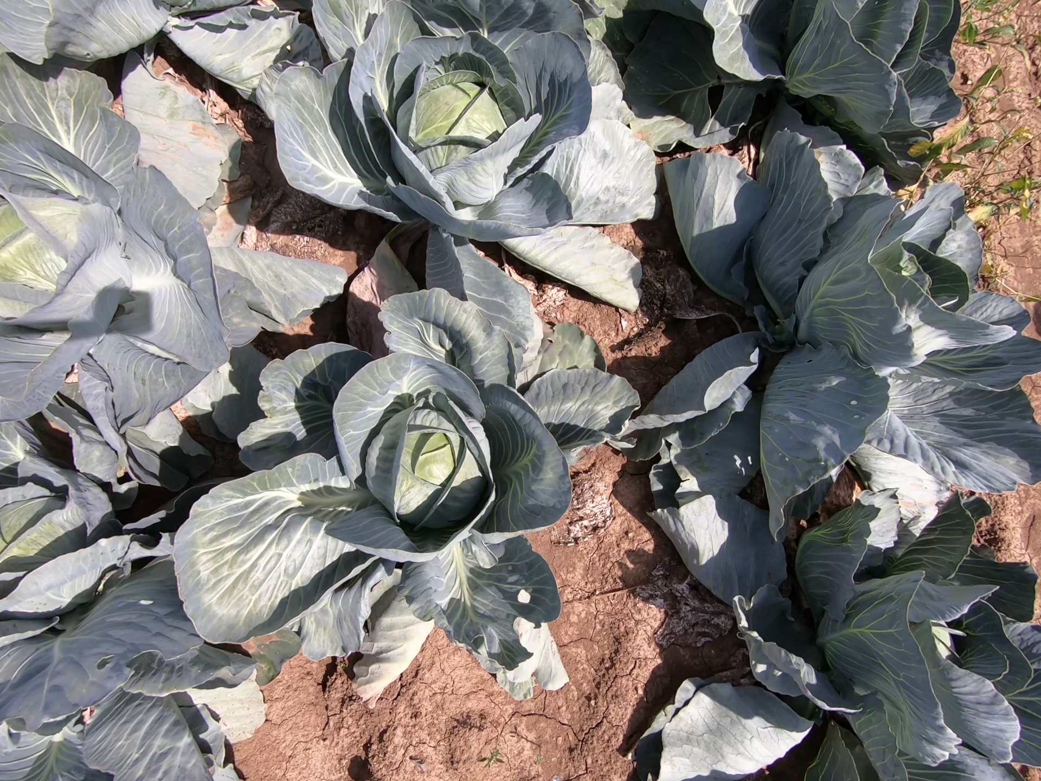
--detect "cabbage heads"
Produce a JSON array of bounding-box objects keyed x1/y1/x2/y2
[
  {"x1": 392, "y1": 69, "x2": 521, "y2": 204},
  {"x1": 363, "y1": 409, "x2": 494, "y2": 533},
  {"x1": 1, "y1": 195, "x2": 125, "y2": 330},
  {"x1": 860, "y1": 592, "x2": 957, "y2": 696},
  {"x1": 3, "y1": 494, "x2": 92, "y2": 610},
  {"x1": 833, "y1": 263, "x2": 928, "y2": 361}
]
